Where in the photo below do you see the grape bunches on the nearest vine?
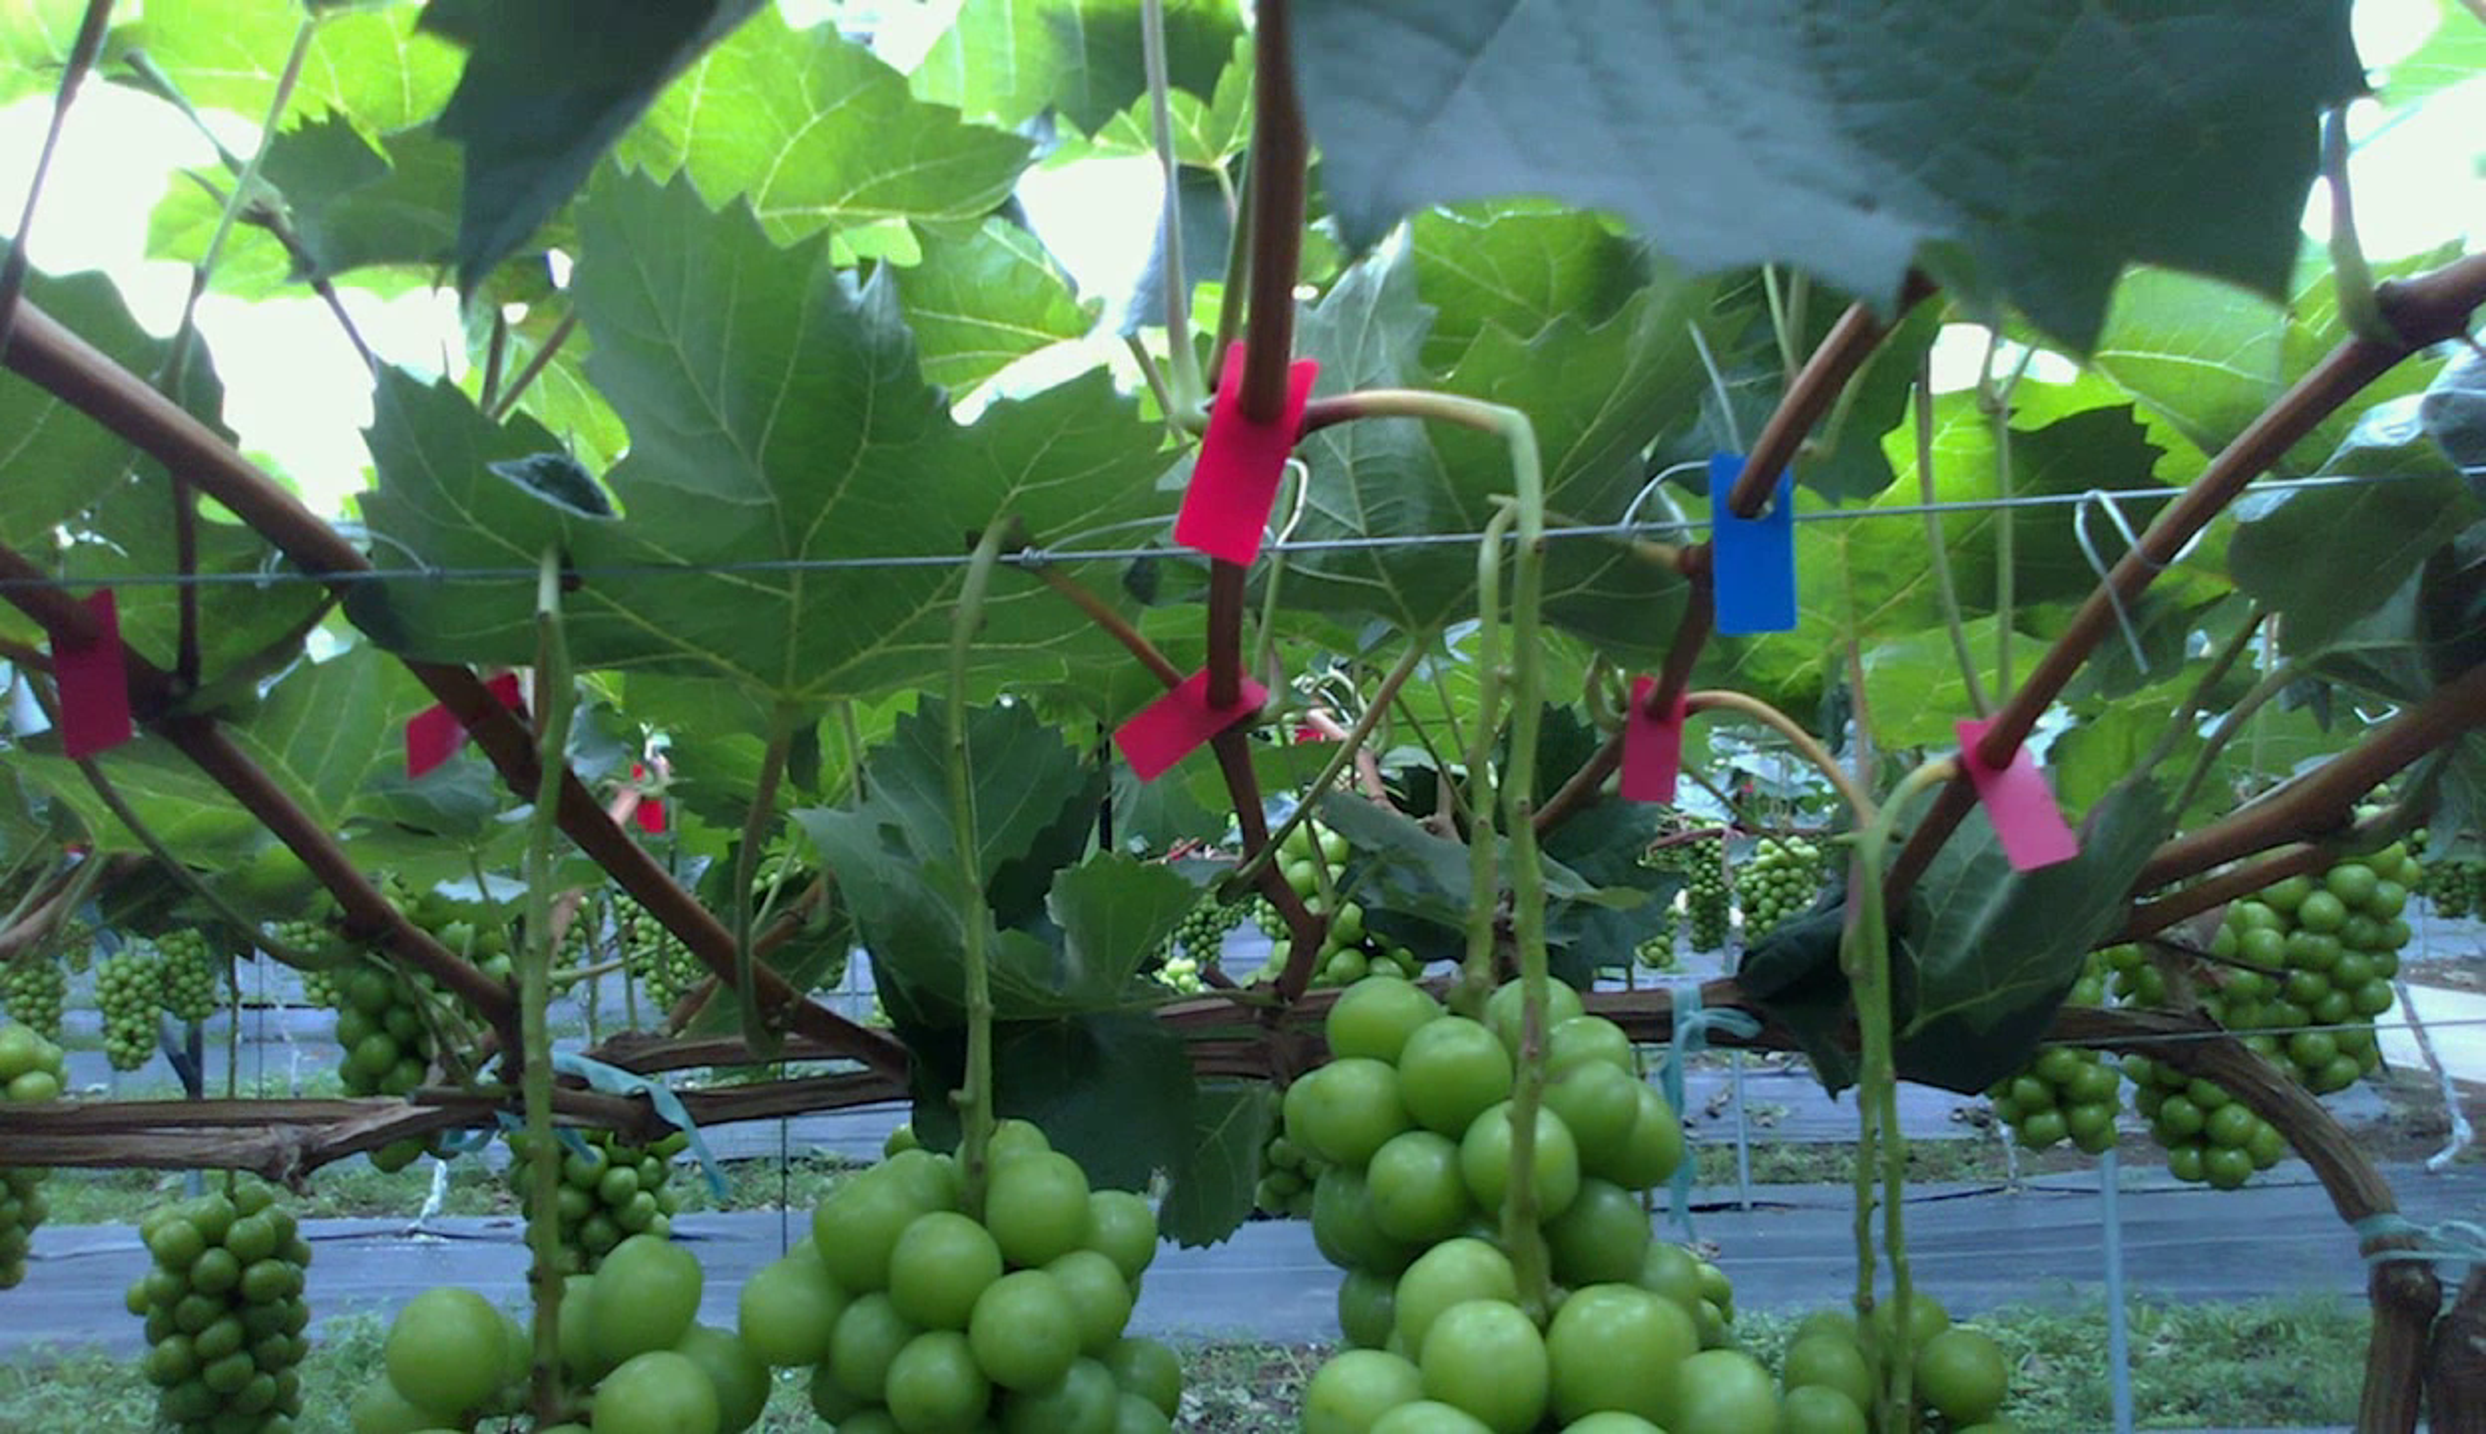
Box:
[1283,974,1703,1352]
[737,1119,1185,1432]
[1775,1291,2020,1432]
[347,1235,771,1432]
[1299,1237,1775,1432]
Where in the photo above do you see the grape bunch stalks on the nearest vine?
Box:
[1448,496,1514,1024]
[1303,388,1554,1340]
[944,518,1018,1225]
[1864,757,1958,1432]
[522,552,572,1430]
